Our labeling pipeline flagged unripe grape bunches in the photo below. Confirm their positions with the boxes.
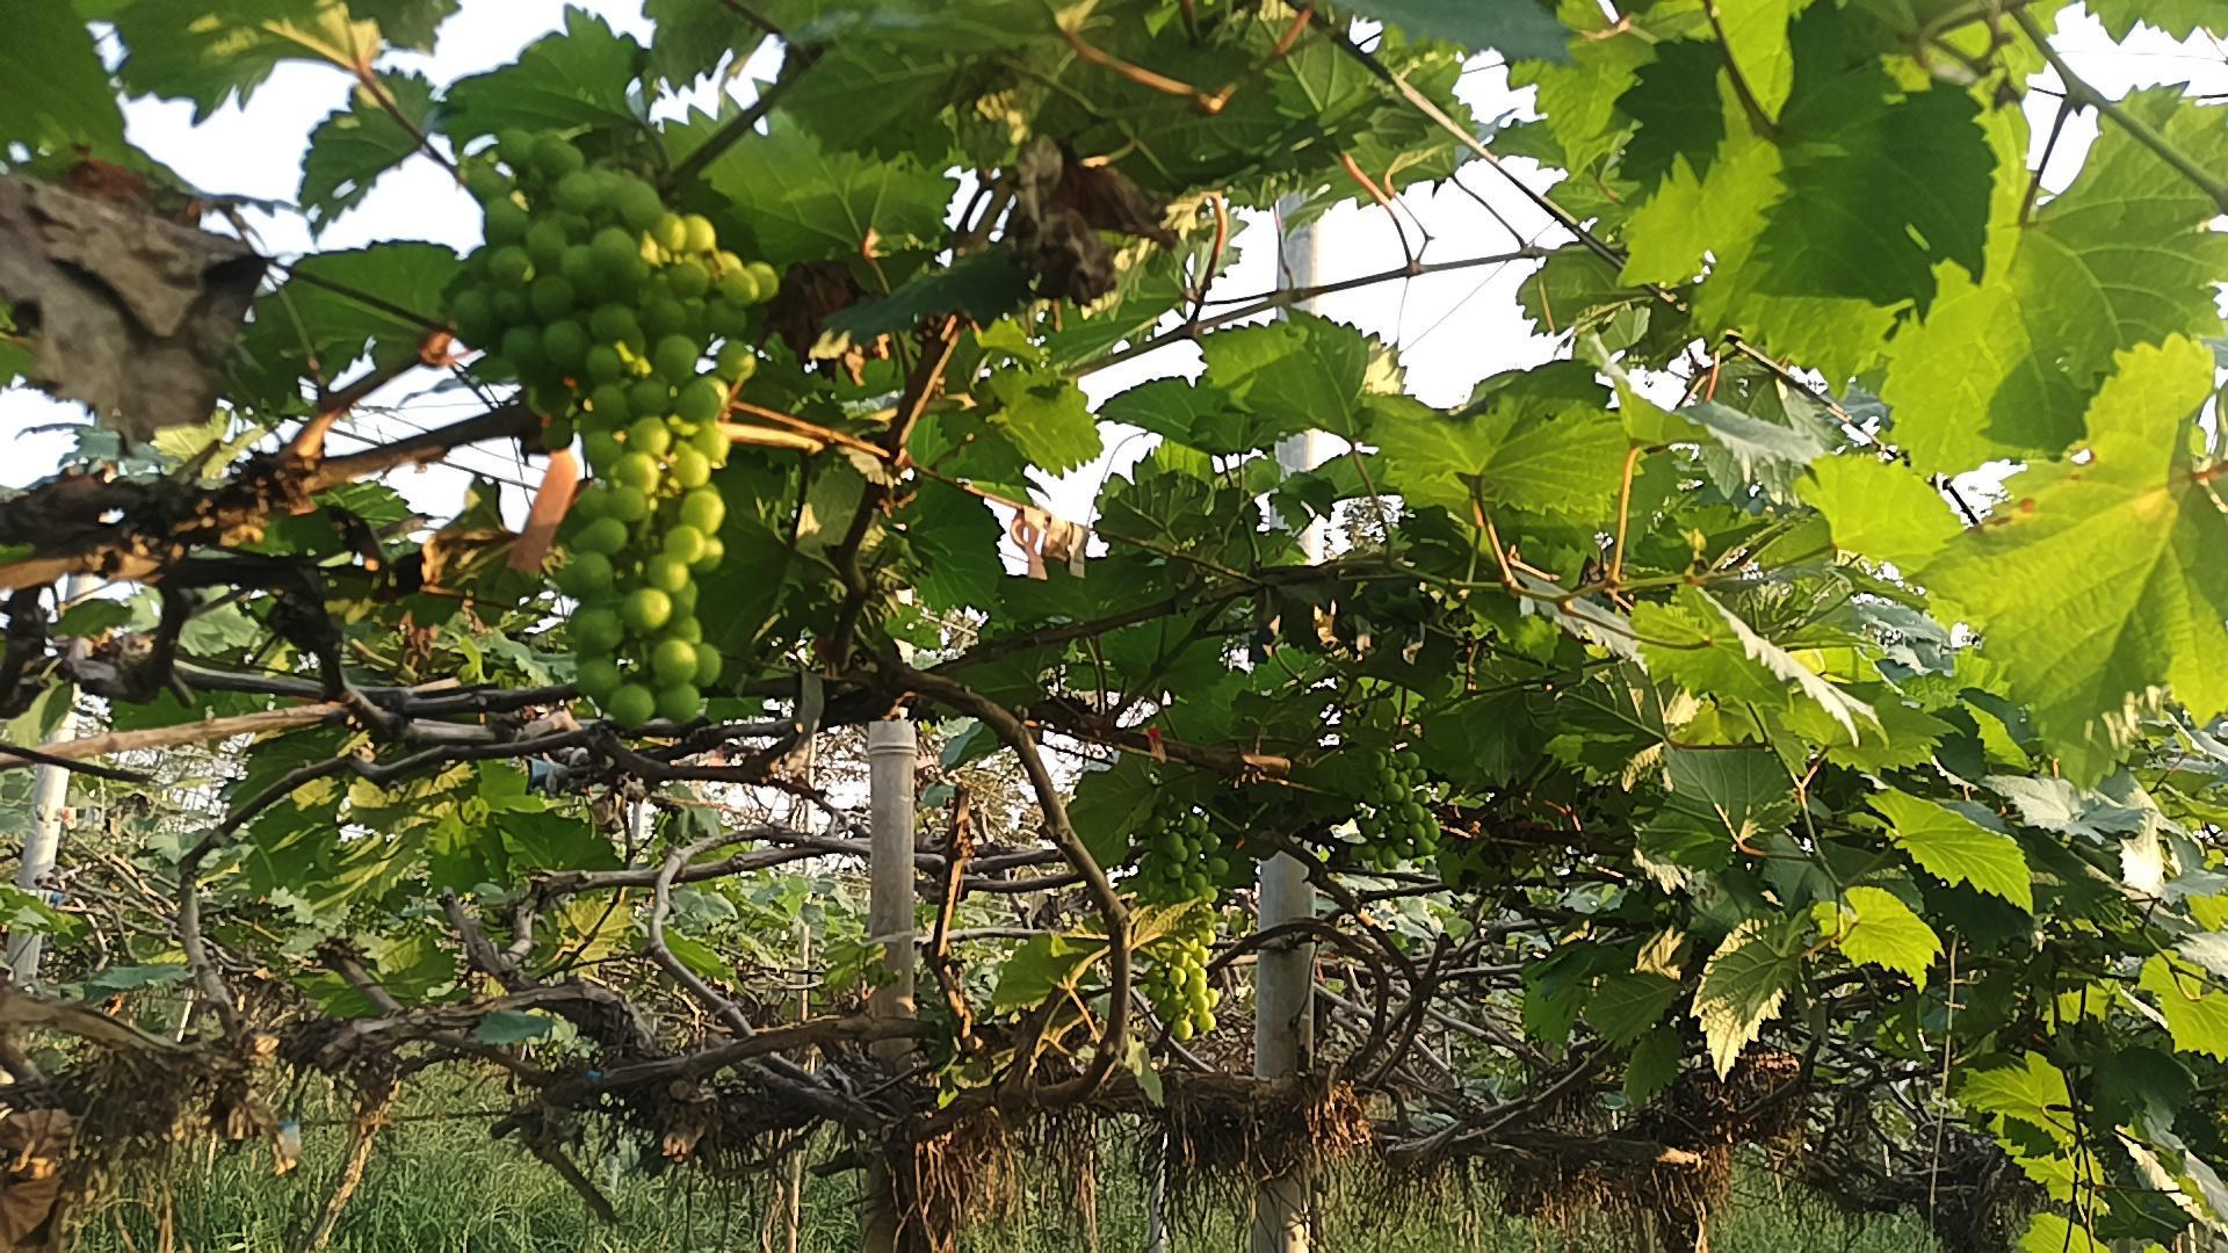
[1124,796,1232,1040]
[455,135,775,724]
[1336,749,1440,870]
